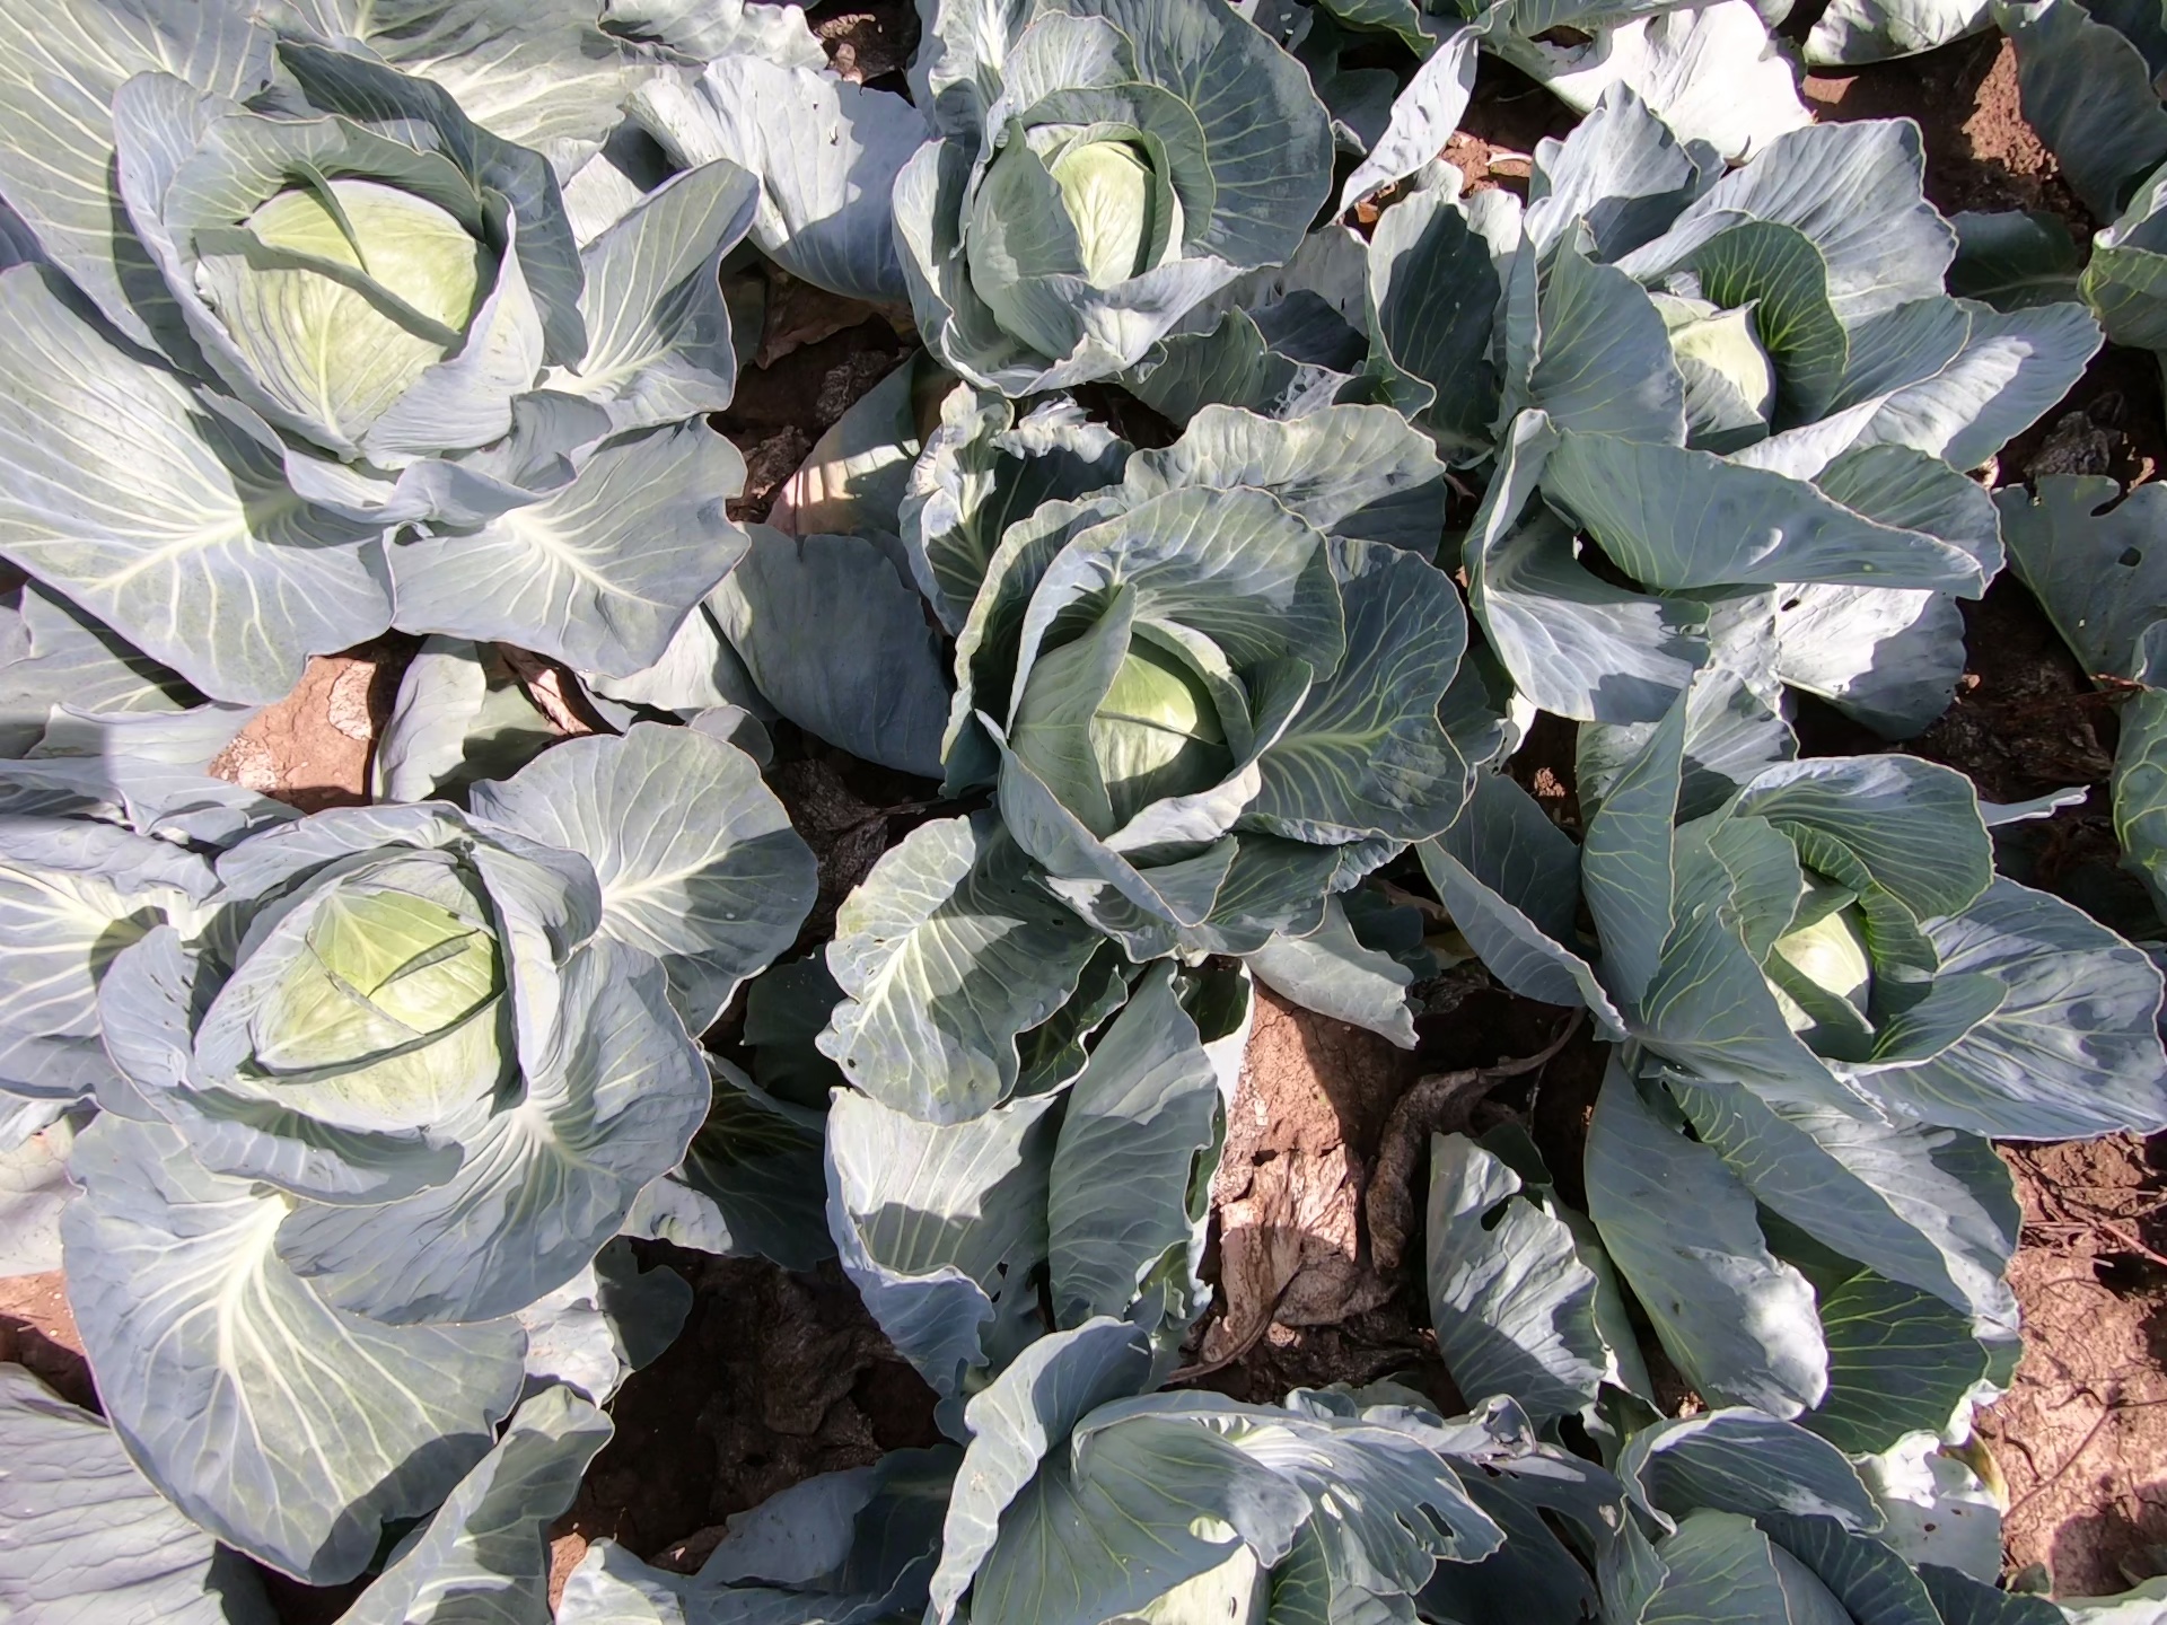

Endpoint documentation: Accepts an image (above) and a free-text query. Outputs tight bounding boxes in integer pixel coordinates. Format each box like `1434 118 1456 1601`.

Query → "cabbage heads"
196 181 529 456
1668 842 1885 1087
956 114 1187 351
1008 611 1253 866
973 1413 1283 1619
1613 1512 1855 1619
226 845 556 1135
1573 289 1786 494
